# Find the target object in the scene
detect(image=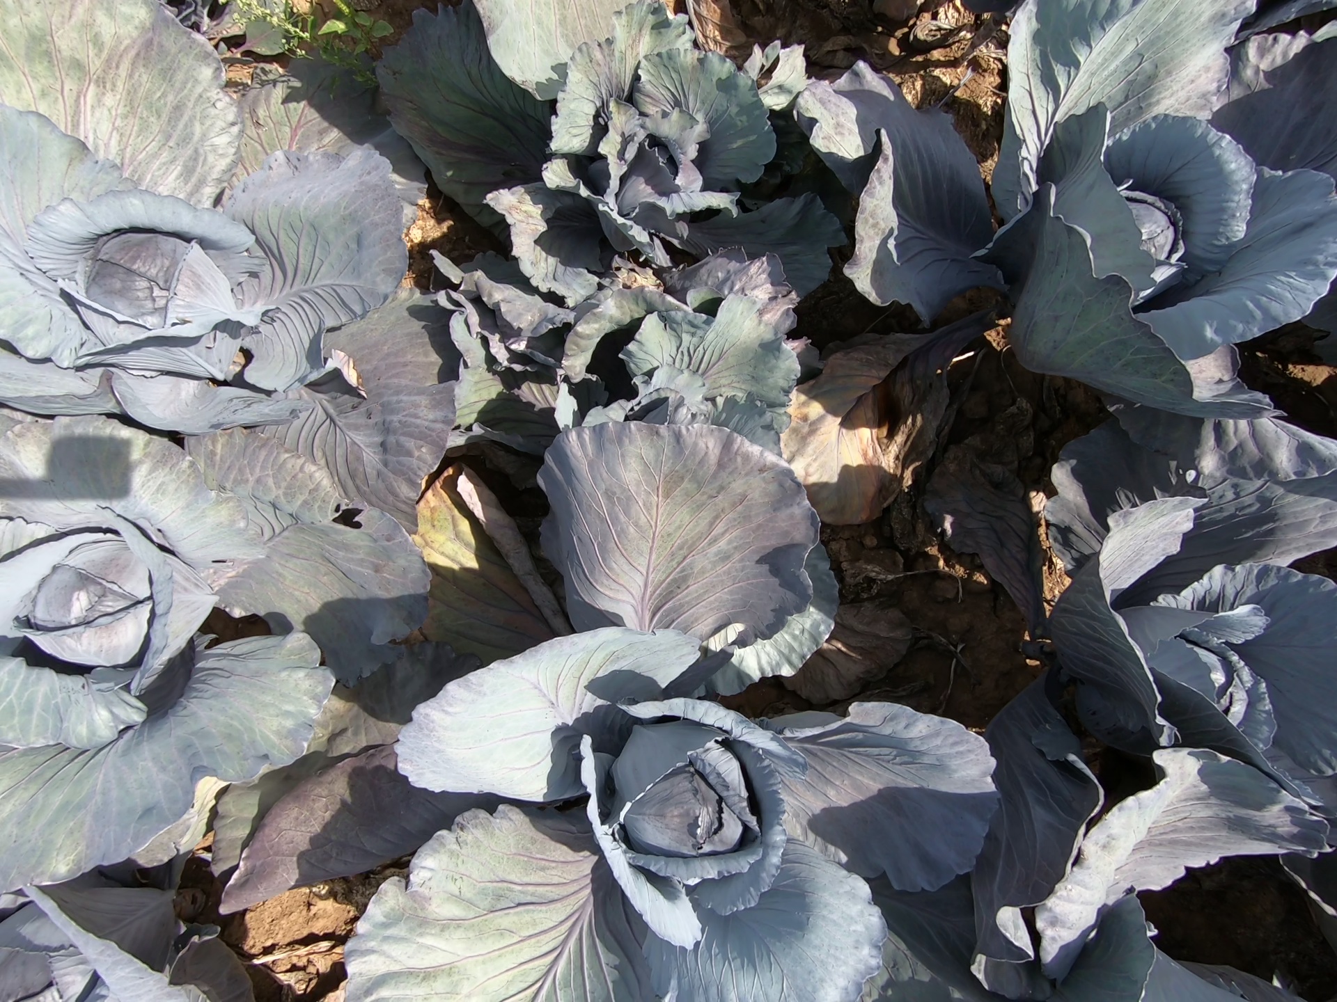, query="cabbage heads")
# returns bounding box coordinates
[78,233,232,372]
[23,539,195,669]
[624,724,746,868]
[1077,197,1182,290]
[1119,639,1250,753]
[629,149,699,215]
[3,892,167,1000]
